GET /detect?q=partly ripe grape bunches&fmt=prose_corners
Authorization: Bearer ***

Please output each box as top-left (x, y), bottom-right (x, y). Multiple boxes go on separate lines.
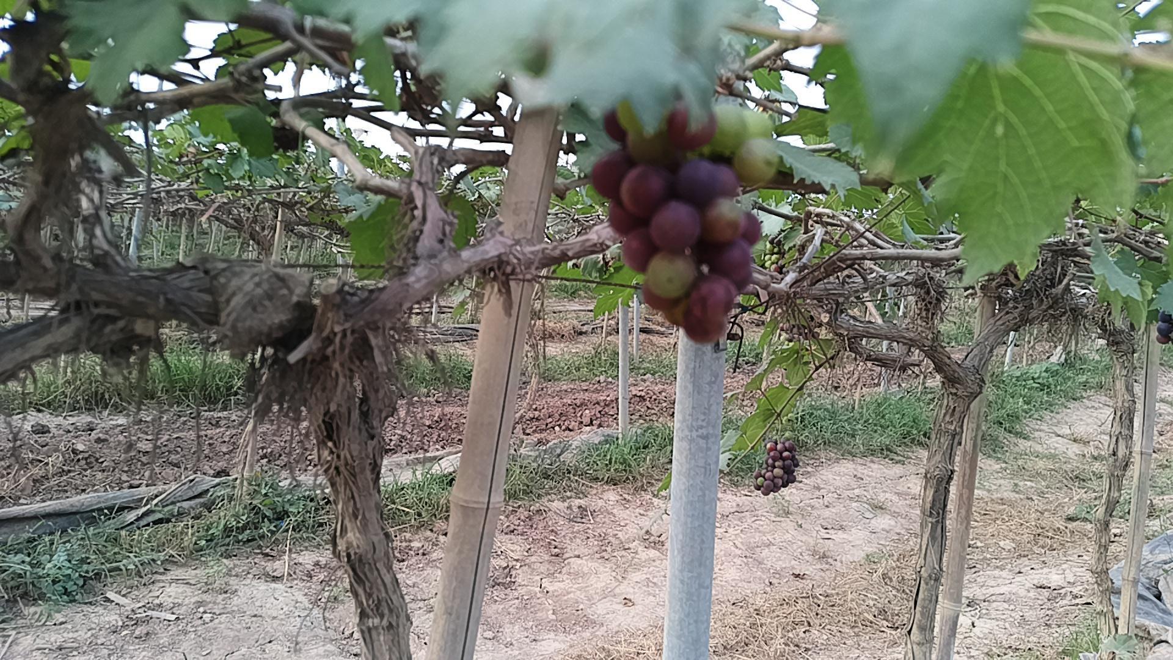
top-left (753, 439), bottom-right (799, 495)
top-left (591, 103), bottom-right (778, 342)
